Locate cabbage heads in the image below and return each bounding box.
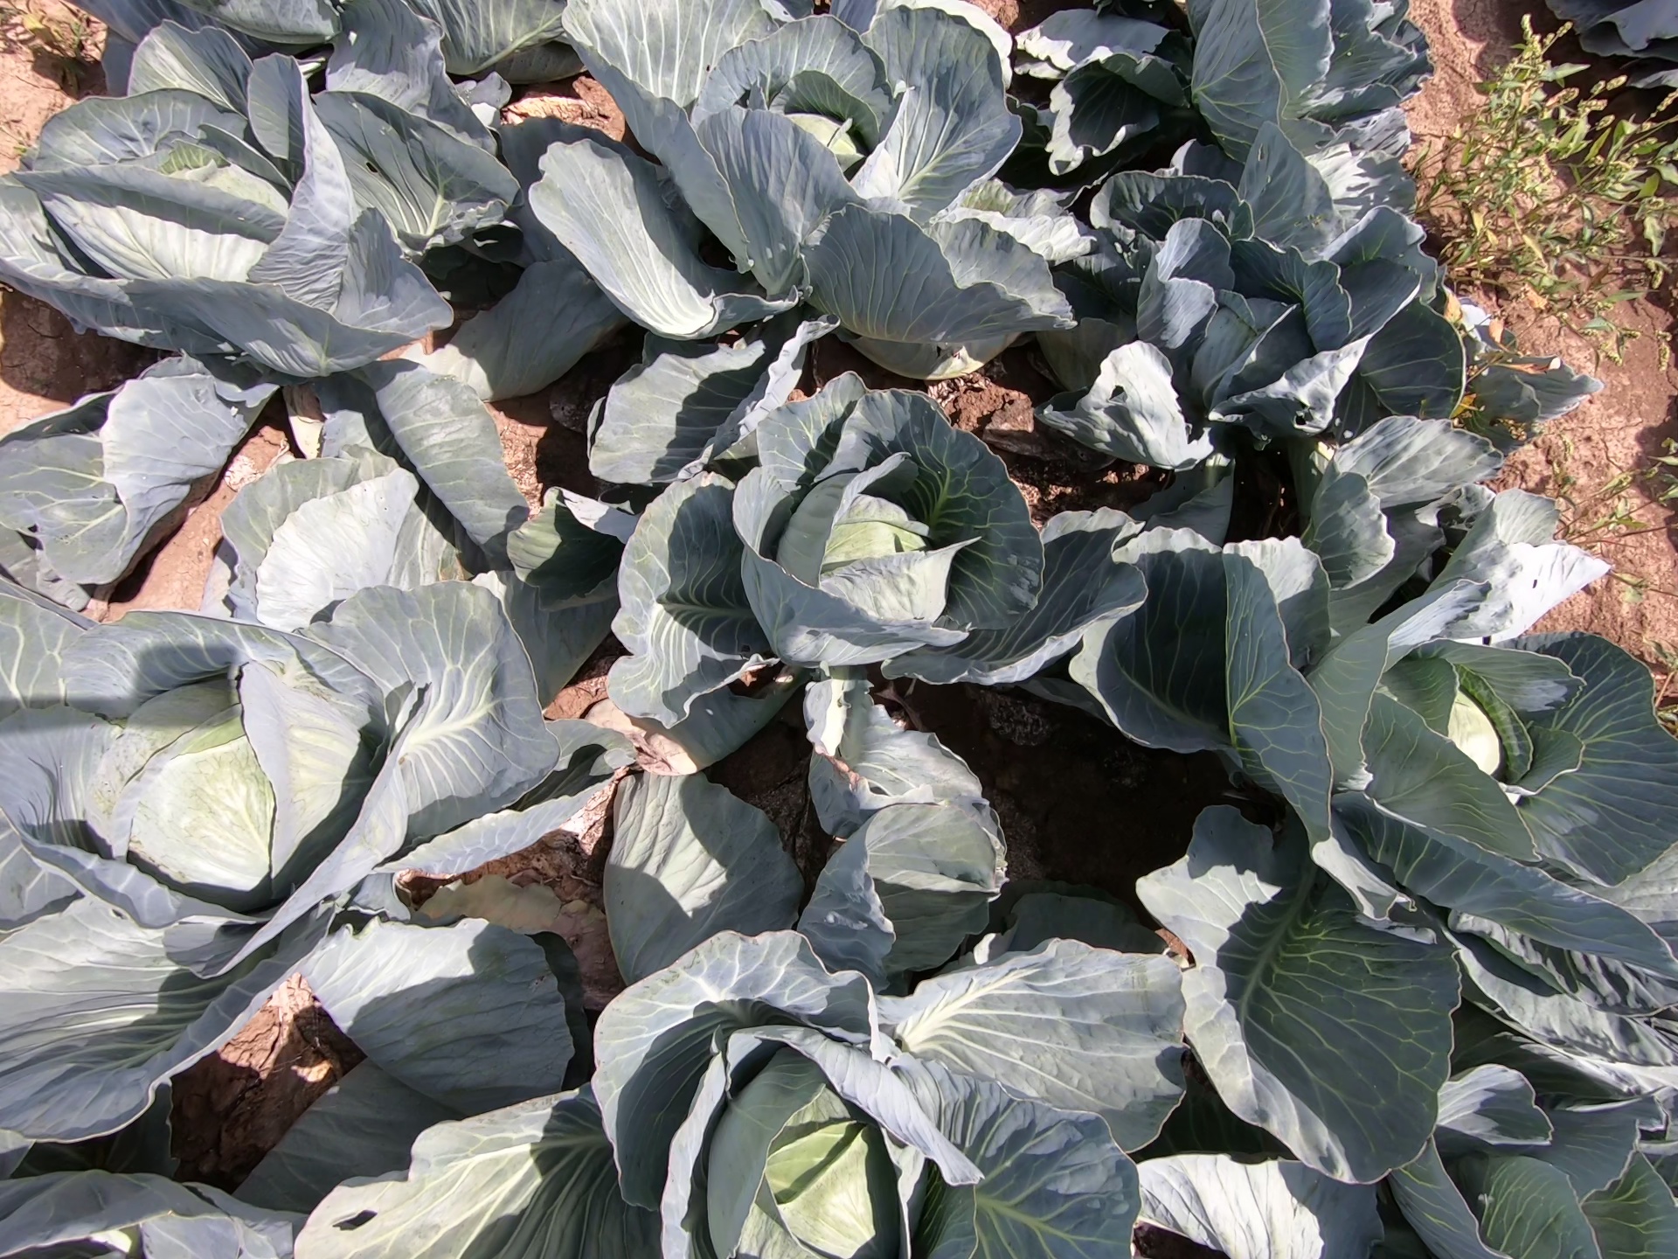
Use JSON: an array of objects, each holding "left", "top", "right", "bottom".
[
  {"left": 783, "top": 488, "right": 946, "bottom": 642},
  {"left": 83, "top": 681, "right": 369, "bottom": 917},
  {"left": 707, "top": 1042, "right": 929, "bottom": 1257},
  {"left": 1387, "top": 674, "right": 1515, "bottom": 791},
  {"left": 757, "top": 109, "right": 872, "bottom": 219},
  {"left": 1195, "top": 291, "right": 1330, "bottom": 427},
  {"left": 139, "top": 163, "right": 308, "bottom": 297}
]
